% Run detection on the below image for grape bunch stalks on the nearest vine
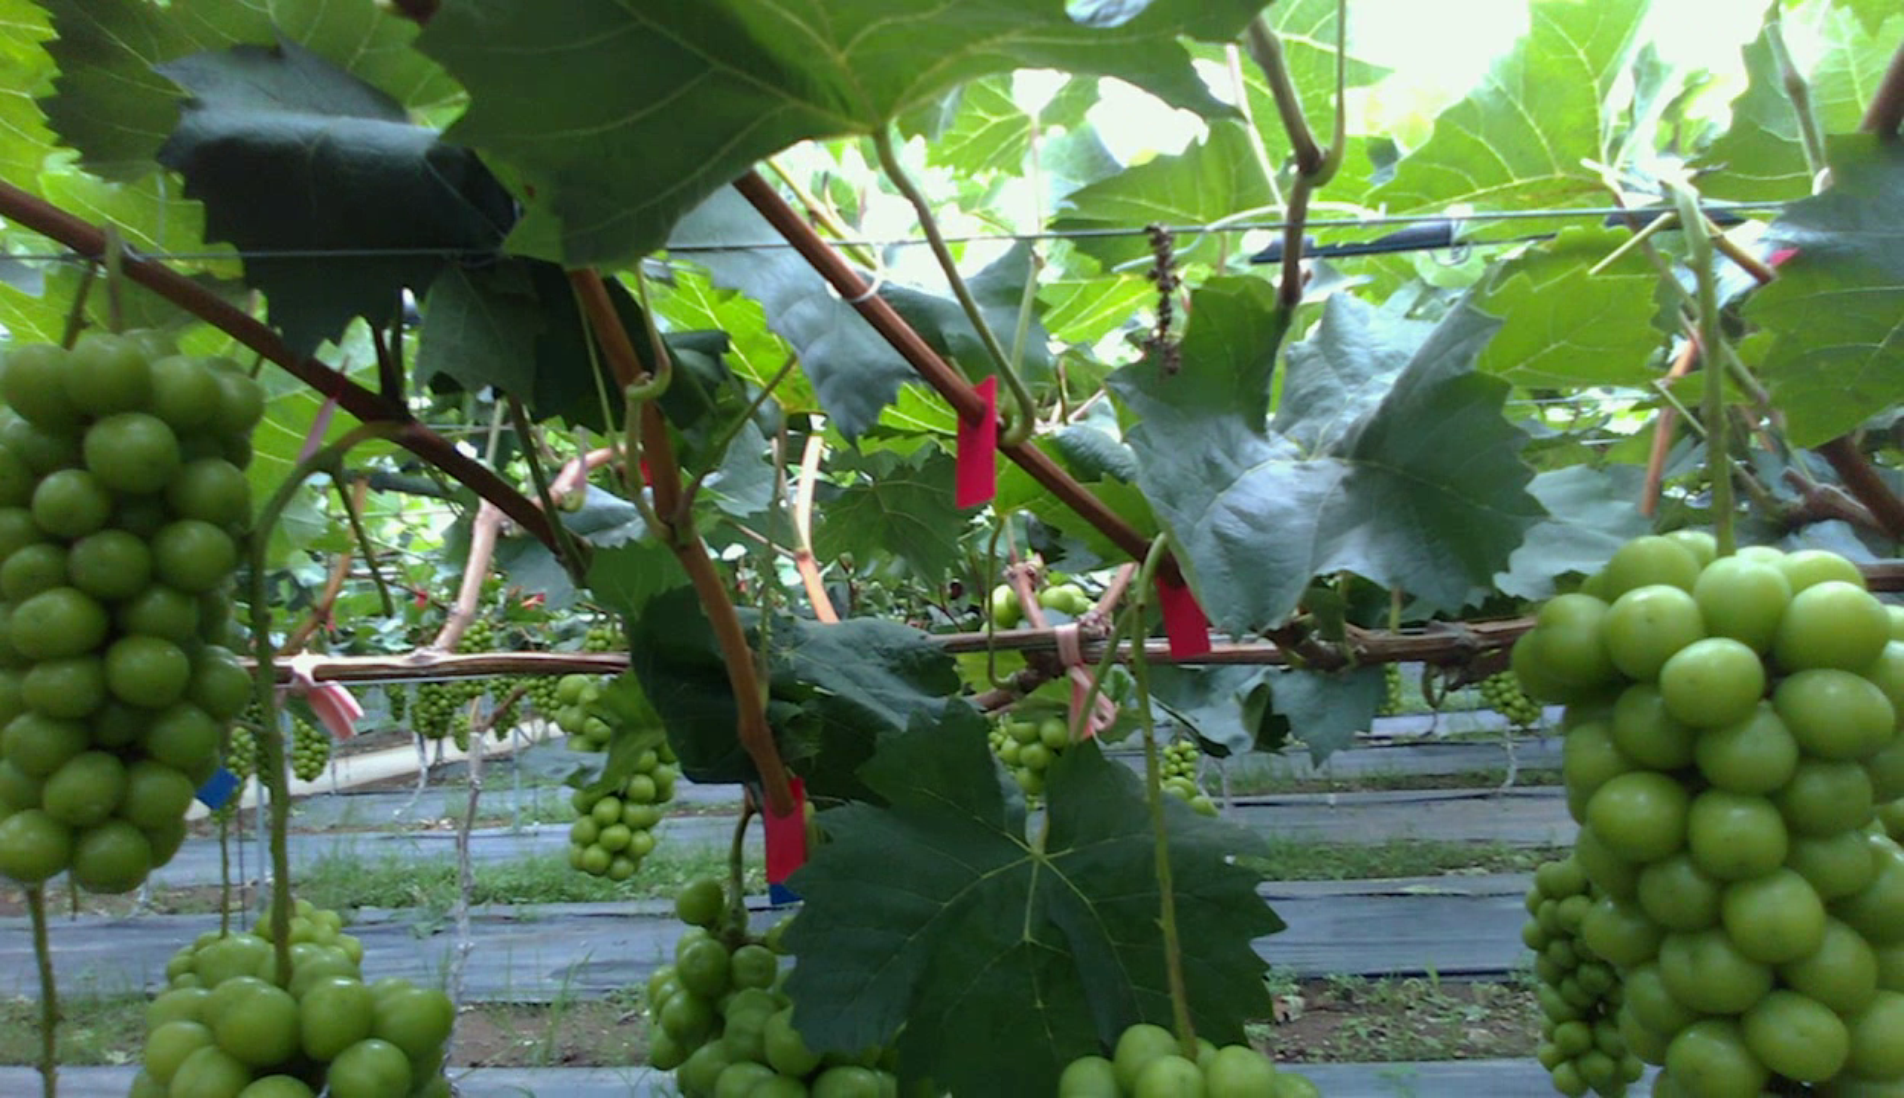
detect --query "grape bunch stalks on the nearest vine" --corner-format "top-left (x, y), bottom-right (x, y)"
top-left (61, 223), bottom-right (122, 351)
top-left (246, 419), bottom-right (418, 990)
top-left (1130, 535), bottom-right (1198, 1064)
top-left (726, 804), bottom-right (755, 939)
top-left (1655, 175), bottom-right (1736, 557)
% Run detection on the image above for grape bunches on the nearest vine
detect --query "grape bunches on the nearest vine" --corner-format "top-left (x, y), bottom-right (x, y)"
top-left (647, 875), bottom-right (793, 1069)
top-left (125, 933), bottom-right (458, 1096)
top-left (1059, 1023), bottom-right (1320, 1096)
top-left (0, 326), bottom-right (265, 894)
top-left (1512, 529), bottom-right (1902, 1095)
top-left (674, 968), bottom-right (900, 1096)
